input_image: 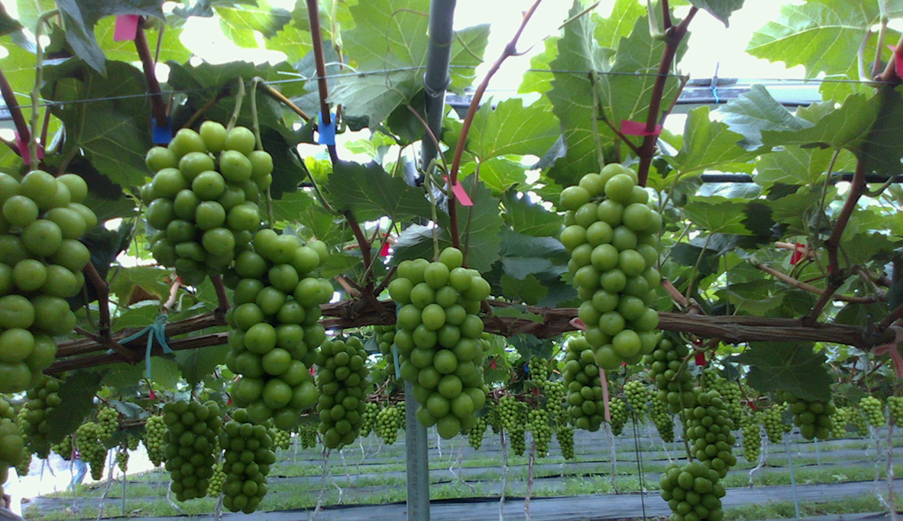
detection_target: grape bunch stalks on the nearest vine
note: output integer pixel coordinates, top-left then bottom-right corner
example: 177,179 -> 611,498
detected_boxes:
590,69 -> 605,171
27,8 -> 58,171
266,186 -> 274,230
226,76 -> 245,133
423,158 -> 446,261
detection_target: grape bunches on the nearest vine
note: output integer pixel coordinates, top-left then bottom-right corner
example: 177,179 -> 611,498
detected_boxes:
140,121 -> 274,287
221,229 -> 334,431
387,247 -> 491,440
1,171 -> 98,394
559,163 -> 663,370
